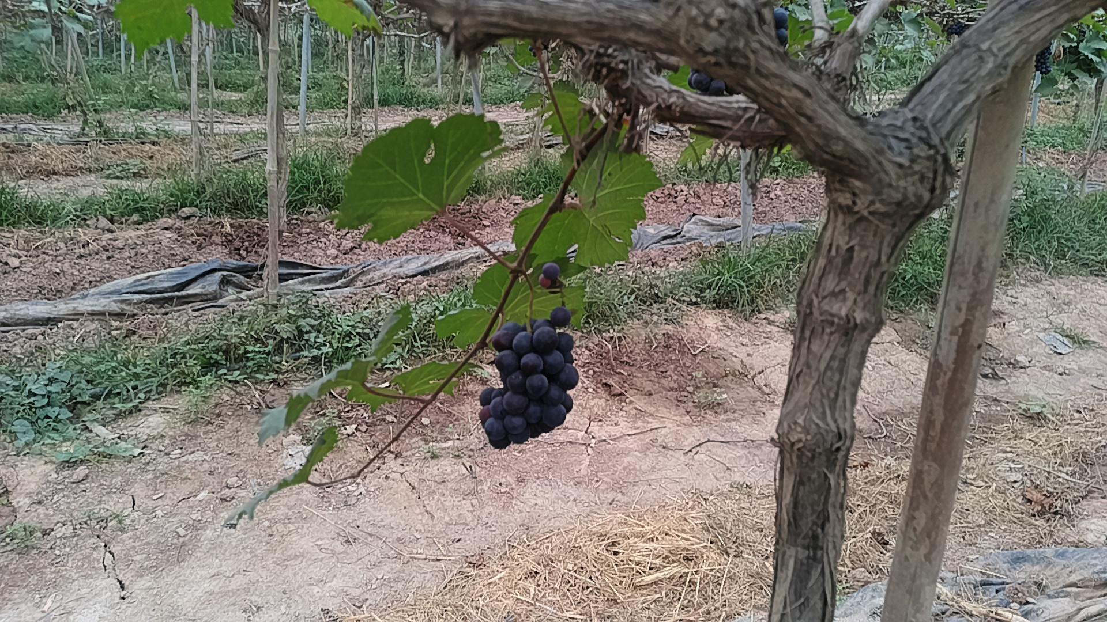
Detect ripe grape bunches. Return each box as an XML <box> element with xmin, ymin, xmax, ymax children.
<box><xmin>946</xmin><ymin>22</ymin><xmax>971</xmax><ymax>36</ymax></box>
<box><xmin>1035</xmin><ymin>45</ymin><xmax>1052</xmax><ymax>75</ymax></box>
<box><xmin>687</xmin><ymin>8</ymin><xmax>788</xmax><ymax>95</ymax></box>
<box><xmin>479</xmin><ymin>263</ymin><xmax>579</xmax><ymax>448</ymax></box>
